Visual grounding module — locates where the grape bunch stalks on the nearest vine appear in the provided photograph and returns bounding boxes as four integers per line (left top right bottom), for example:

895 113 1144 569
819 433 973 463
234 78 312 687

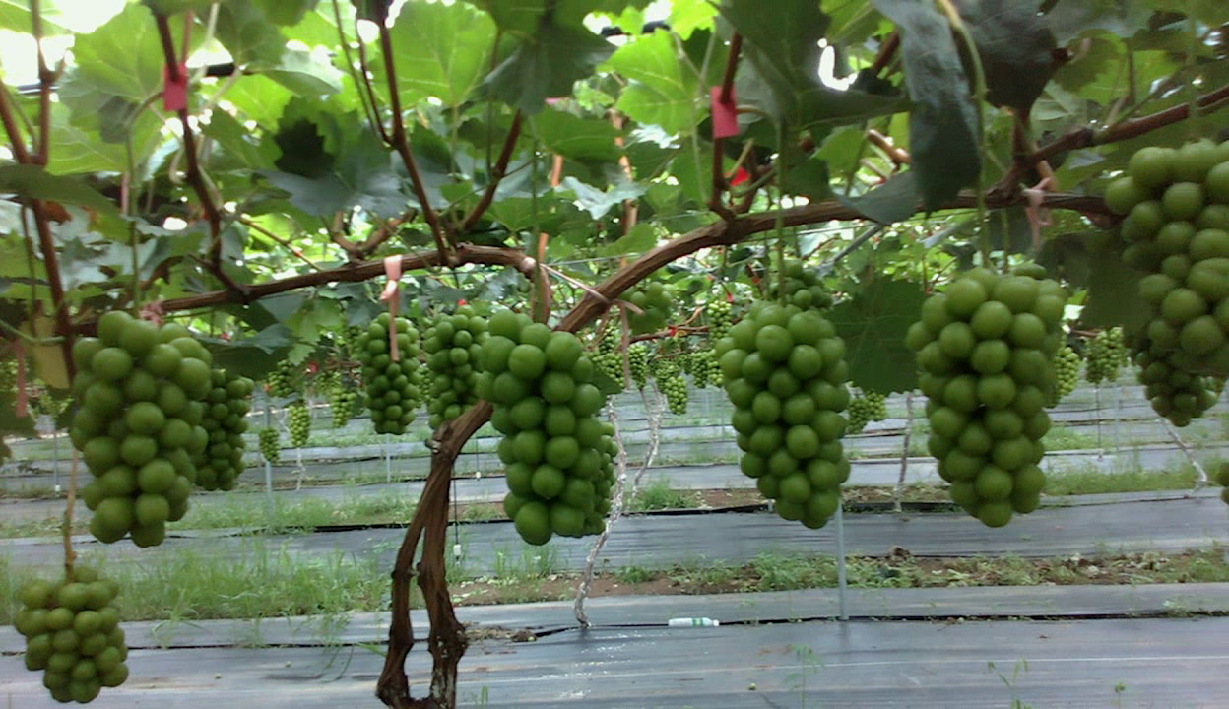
531 147 543 322
1185 1 1199 142
776 113 788 306
62 447 80 583
124 136 142 318
935 3 990 269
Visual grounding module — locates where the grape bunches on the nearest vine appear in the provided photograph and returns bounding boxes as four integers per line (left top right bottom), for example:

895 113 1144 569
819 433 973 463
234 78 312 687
69 311 213 548
13 565 129 704
474 308 603 546
904 265 1068 528
1103 137 1228 376
714 301 851 529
